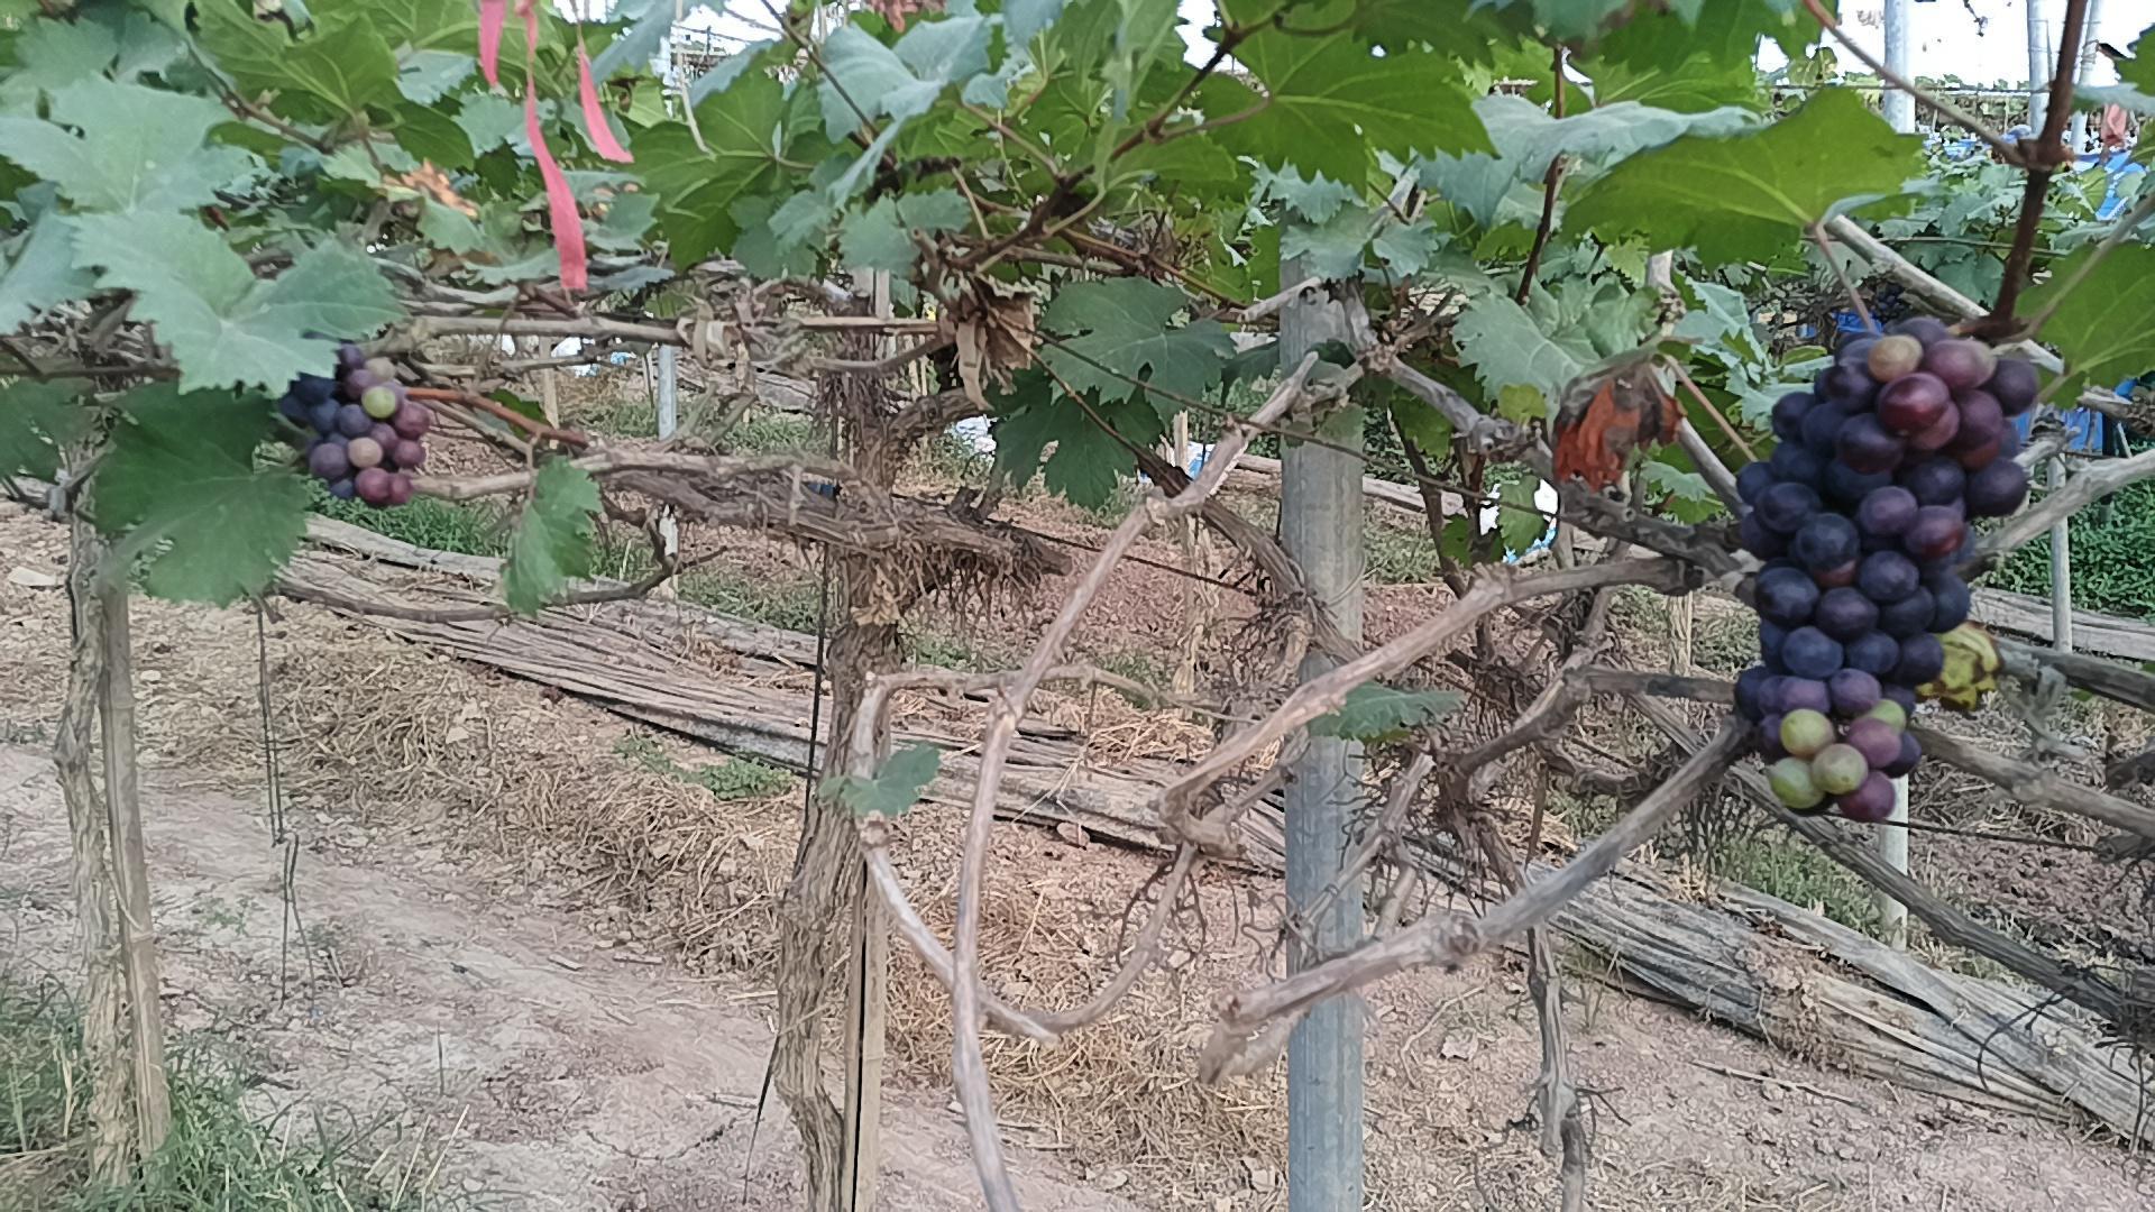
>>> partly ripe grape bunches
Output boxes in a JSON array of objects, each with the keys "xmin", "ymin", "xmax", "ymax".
[
  {"xmin": 1734, "ymin": 313, "xmax": 2039, "ymax": 824},
  {"xmin": 279, "ymin": 342, "xmax": 434, "ymax": 504}
]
